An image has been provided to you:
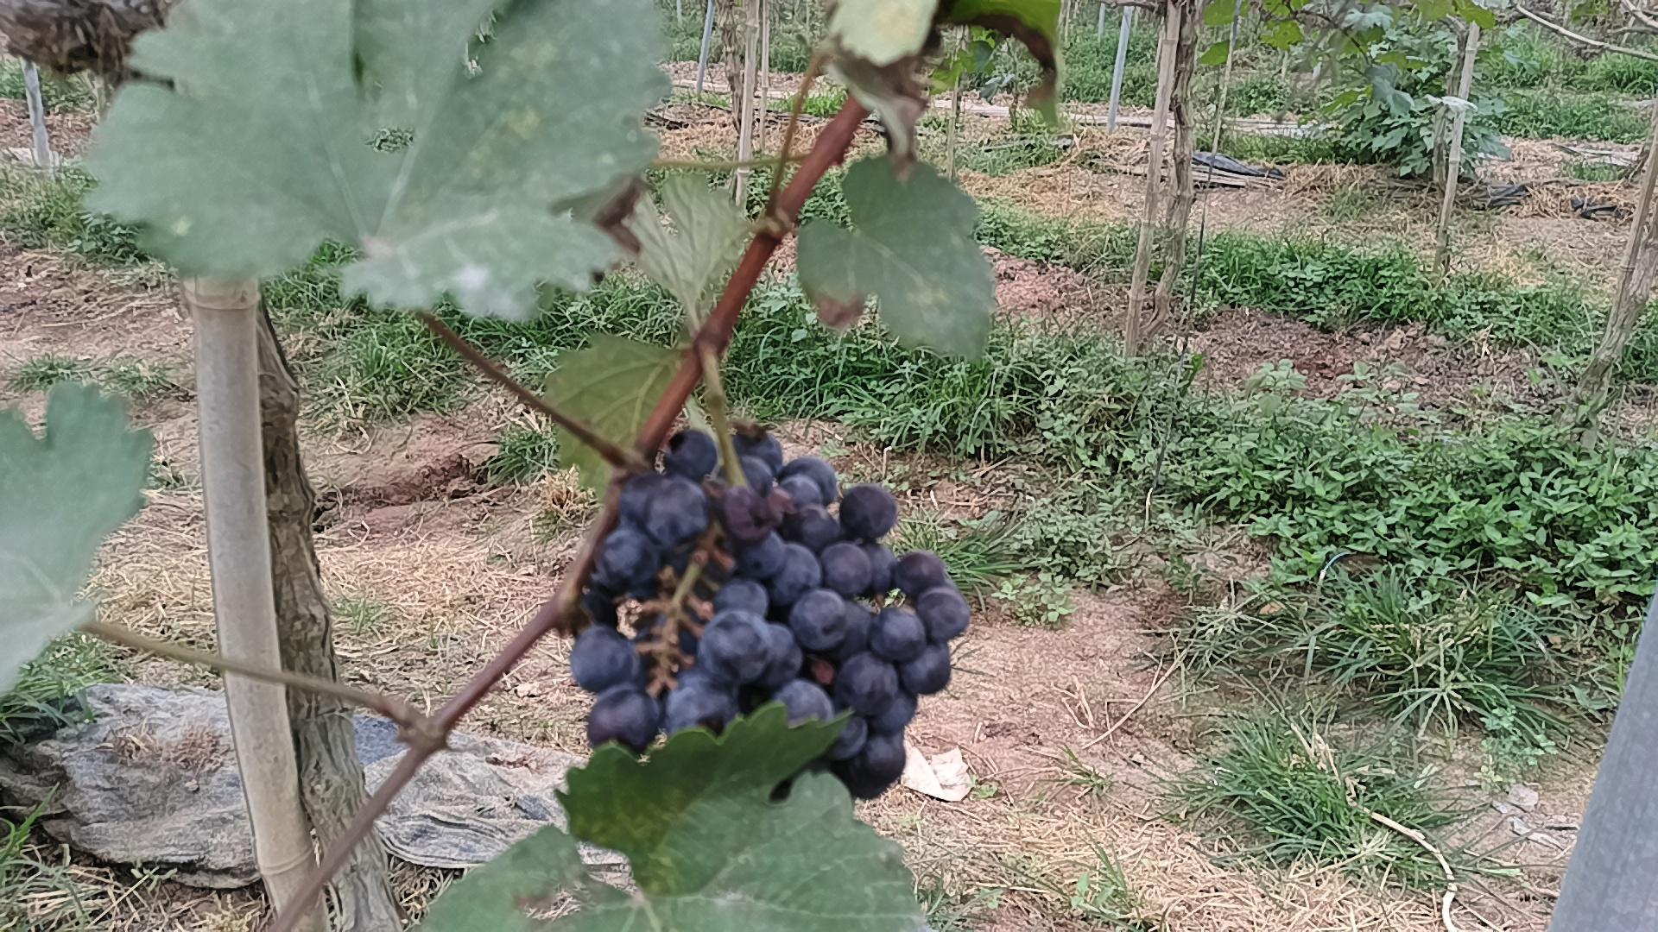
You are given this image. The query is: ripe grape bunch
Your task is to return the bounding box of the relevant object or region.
[571,426,971,798]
